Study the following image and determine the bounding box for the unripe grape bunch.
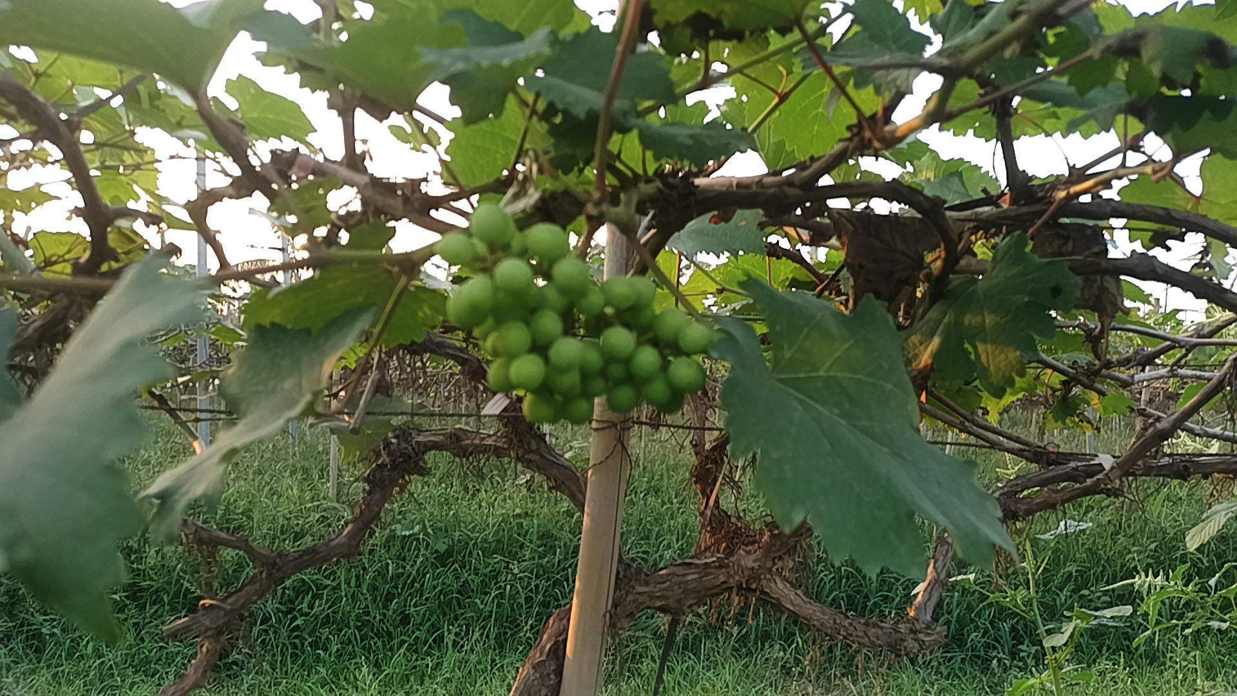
[436,201,714,425]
